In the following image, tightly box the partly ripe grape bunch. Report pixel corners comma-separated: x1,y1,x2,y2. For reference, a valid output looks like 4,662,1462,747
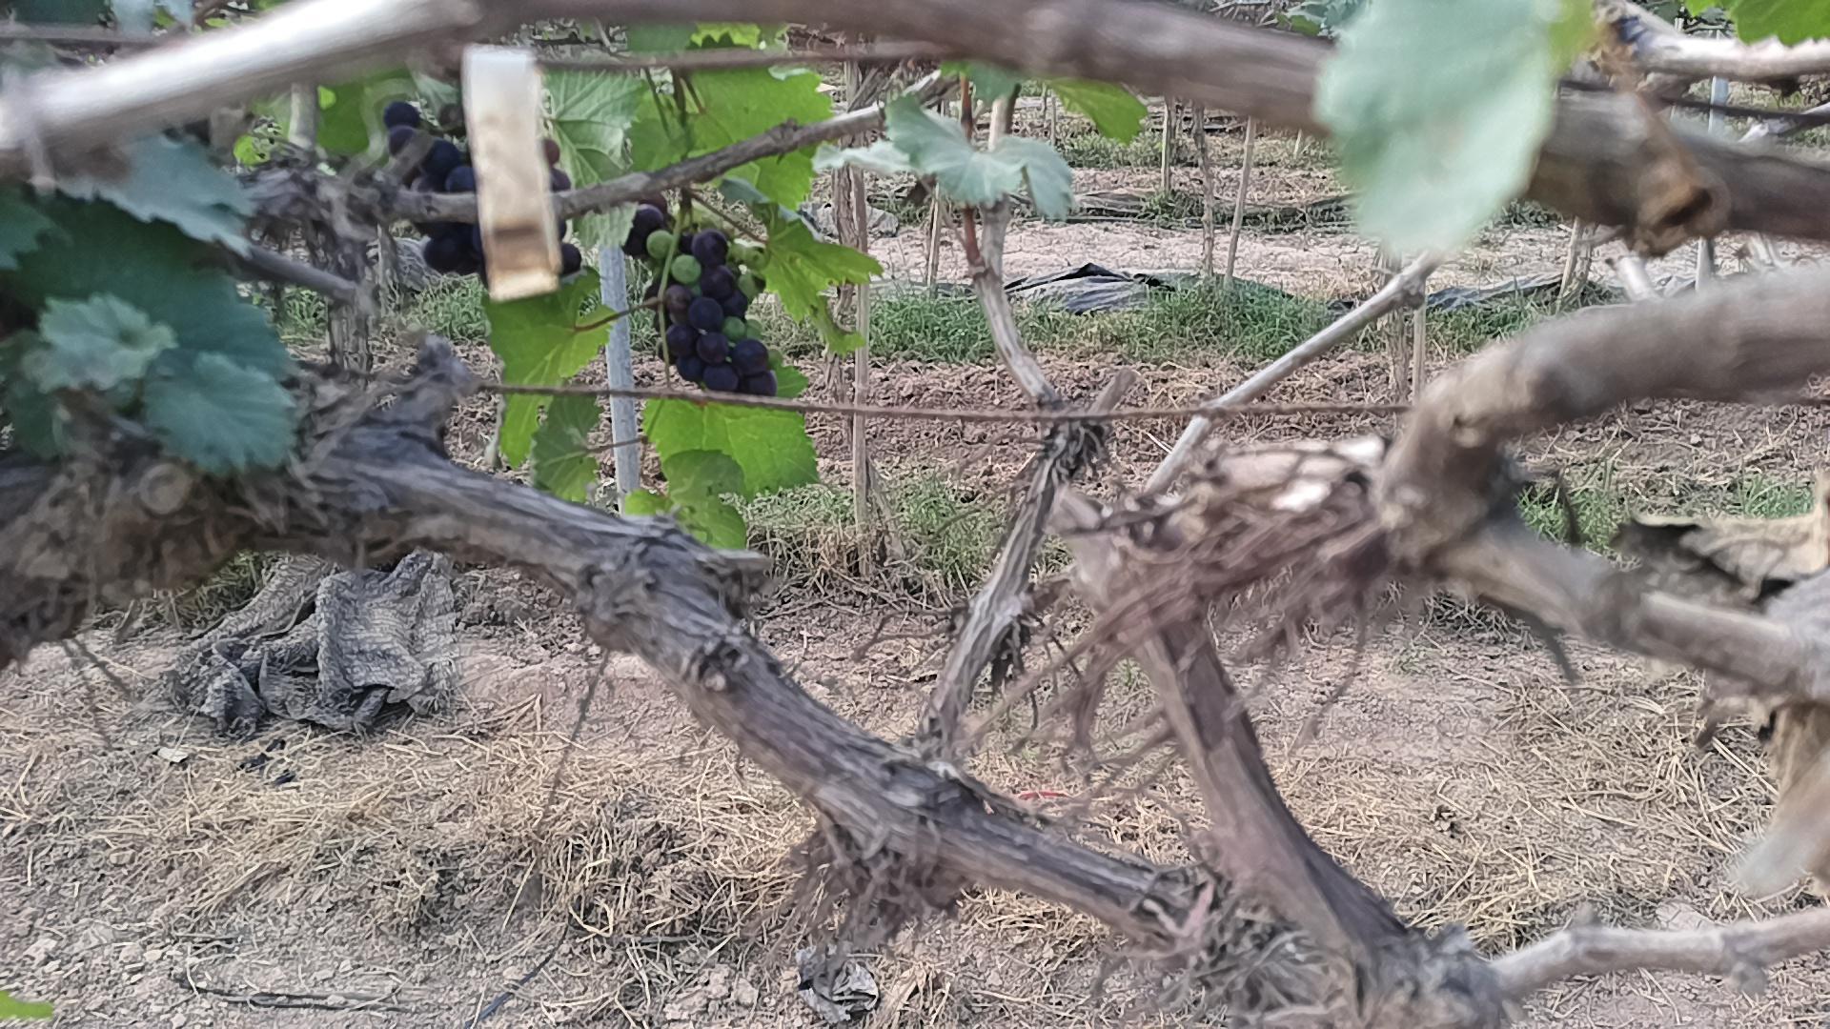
624,192,782,396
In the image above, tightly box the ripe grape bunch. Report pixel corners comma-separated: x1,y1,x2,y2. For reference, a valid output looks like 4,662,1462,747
383,101,581,289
